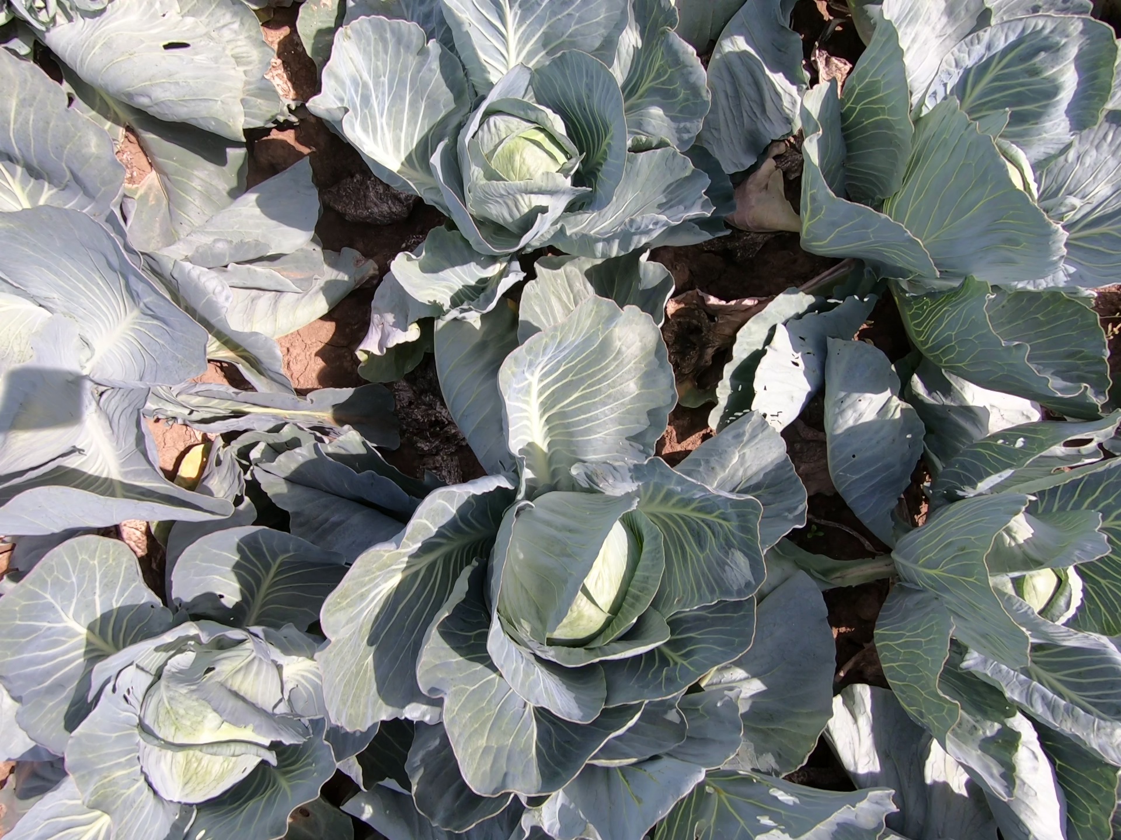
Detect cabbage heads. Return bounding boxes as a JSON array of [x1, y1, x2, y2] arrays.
[[491, 495, 643, 649], [944, 521, 1084, 633], [463, 107, 572, 231], [914, 143, 1038, 255], [130, 657, 277, 806], [0, 292, 87, 475]]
